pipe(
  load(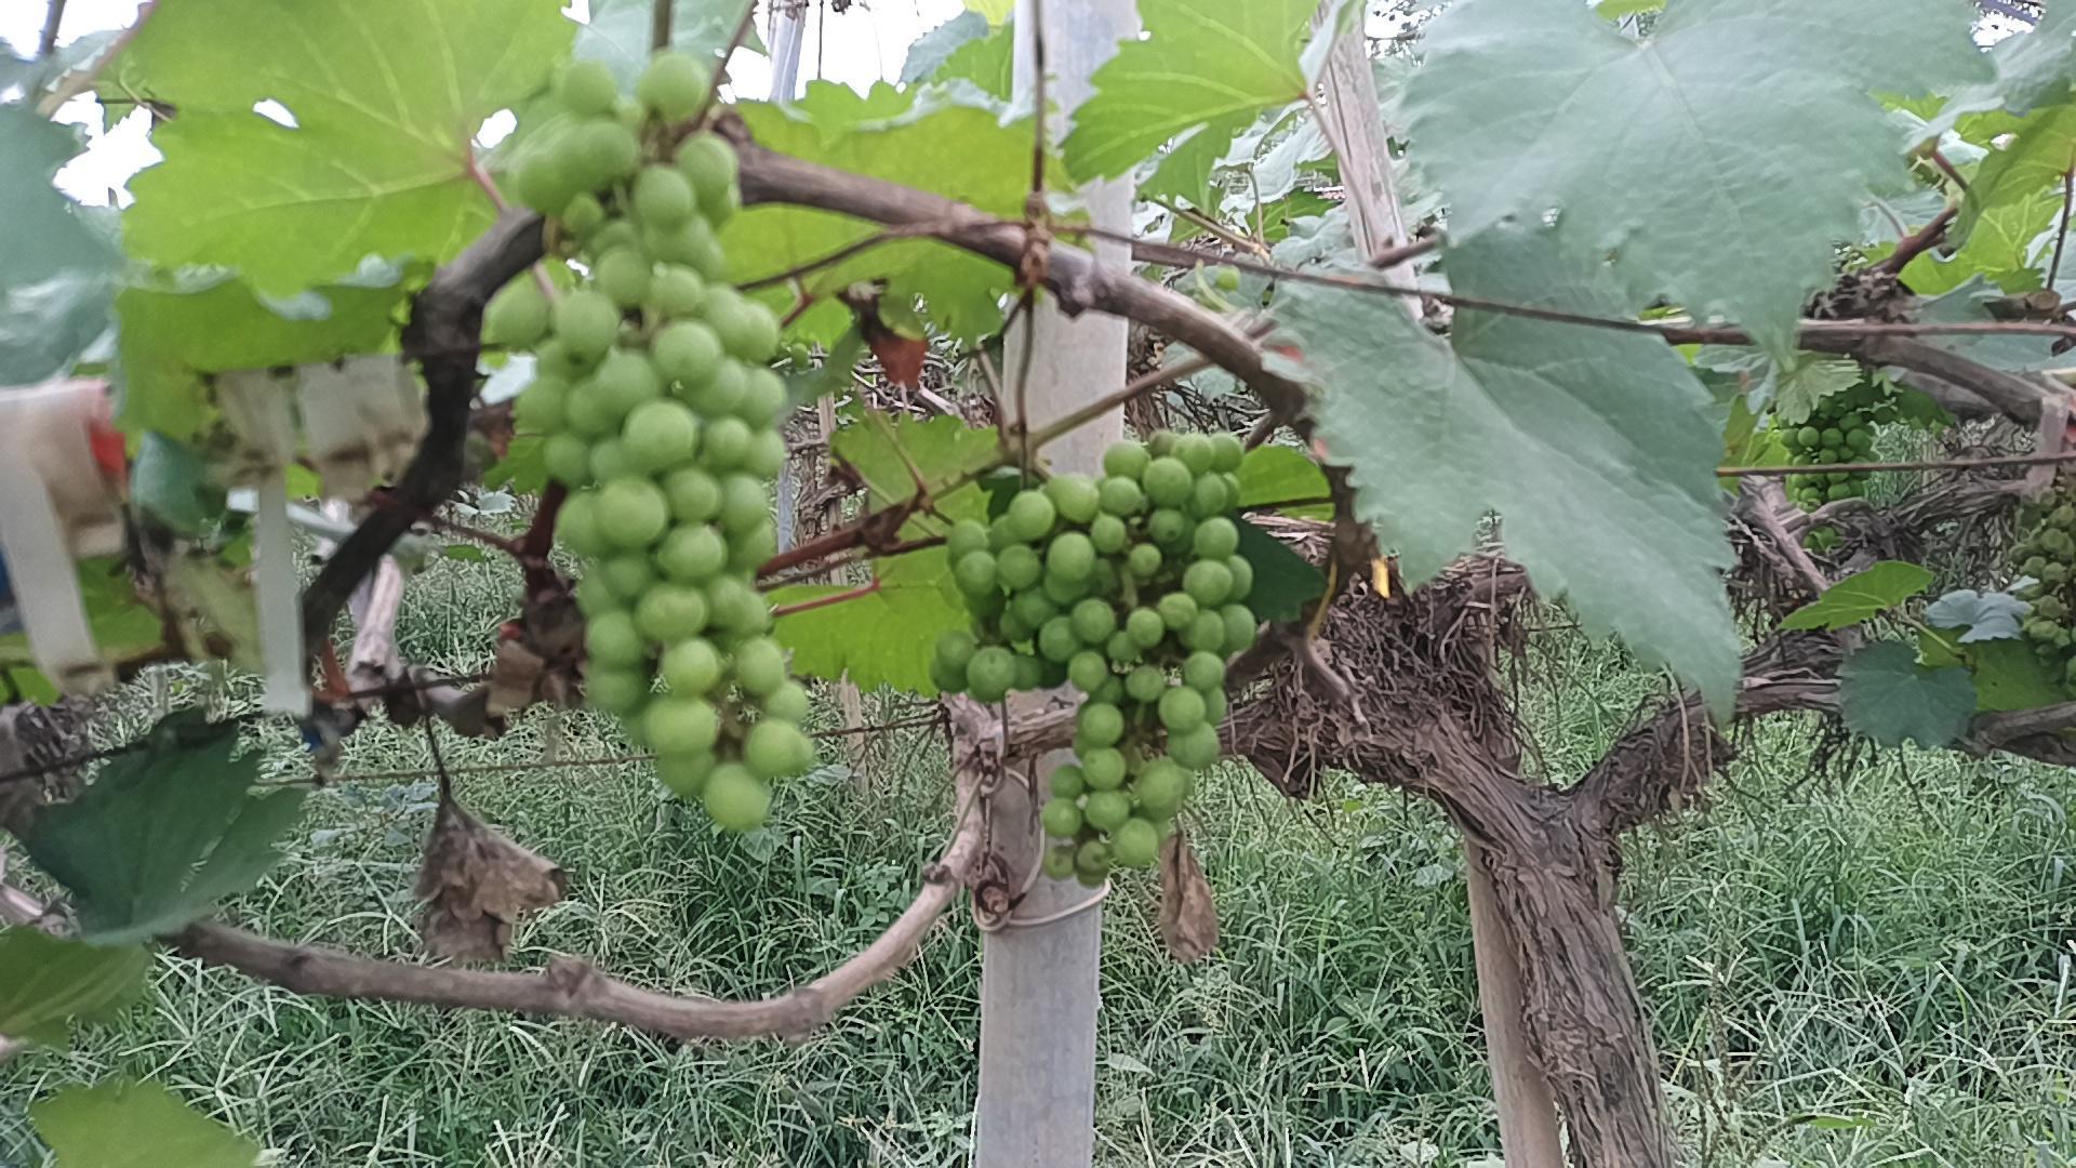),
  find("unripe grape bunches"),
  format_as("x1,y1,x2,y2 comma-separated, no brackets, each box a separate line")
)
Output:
481,53,816,832
1781,380,1893,554
2012,466,2075,679
933,430,1257,884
